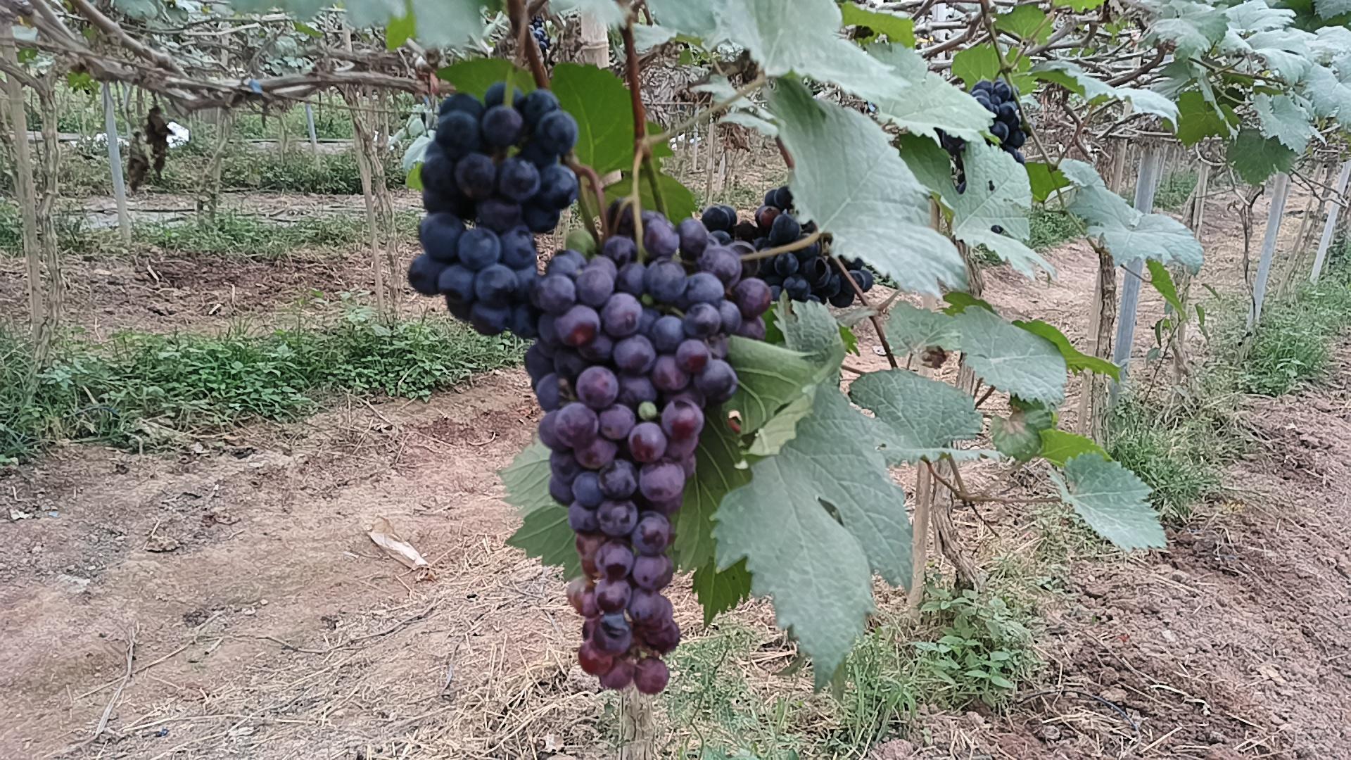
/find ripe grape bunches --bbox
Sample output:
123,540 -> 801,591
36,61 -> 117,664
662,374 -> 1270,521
528,186 -> 873,693
408,82 -> 578,337
935,79 -> 1032,193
